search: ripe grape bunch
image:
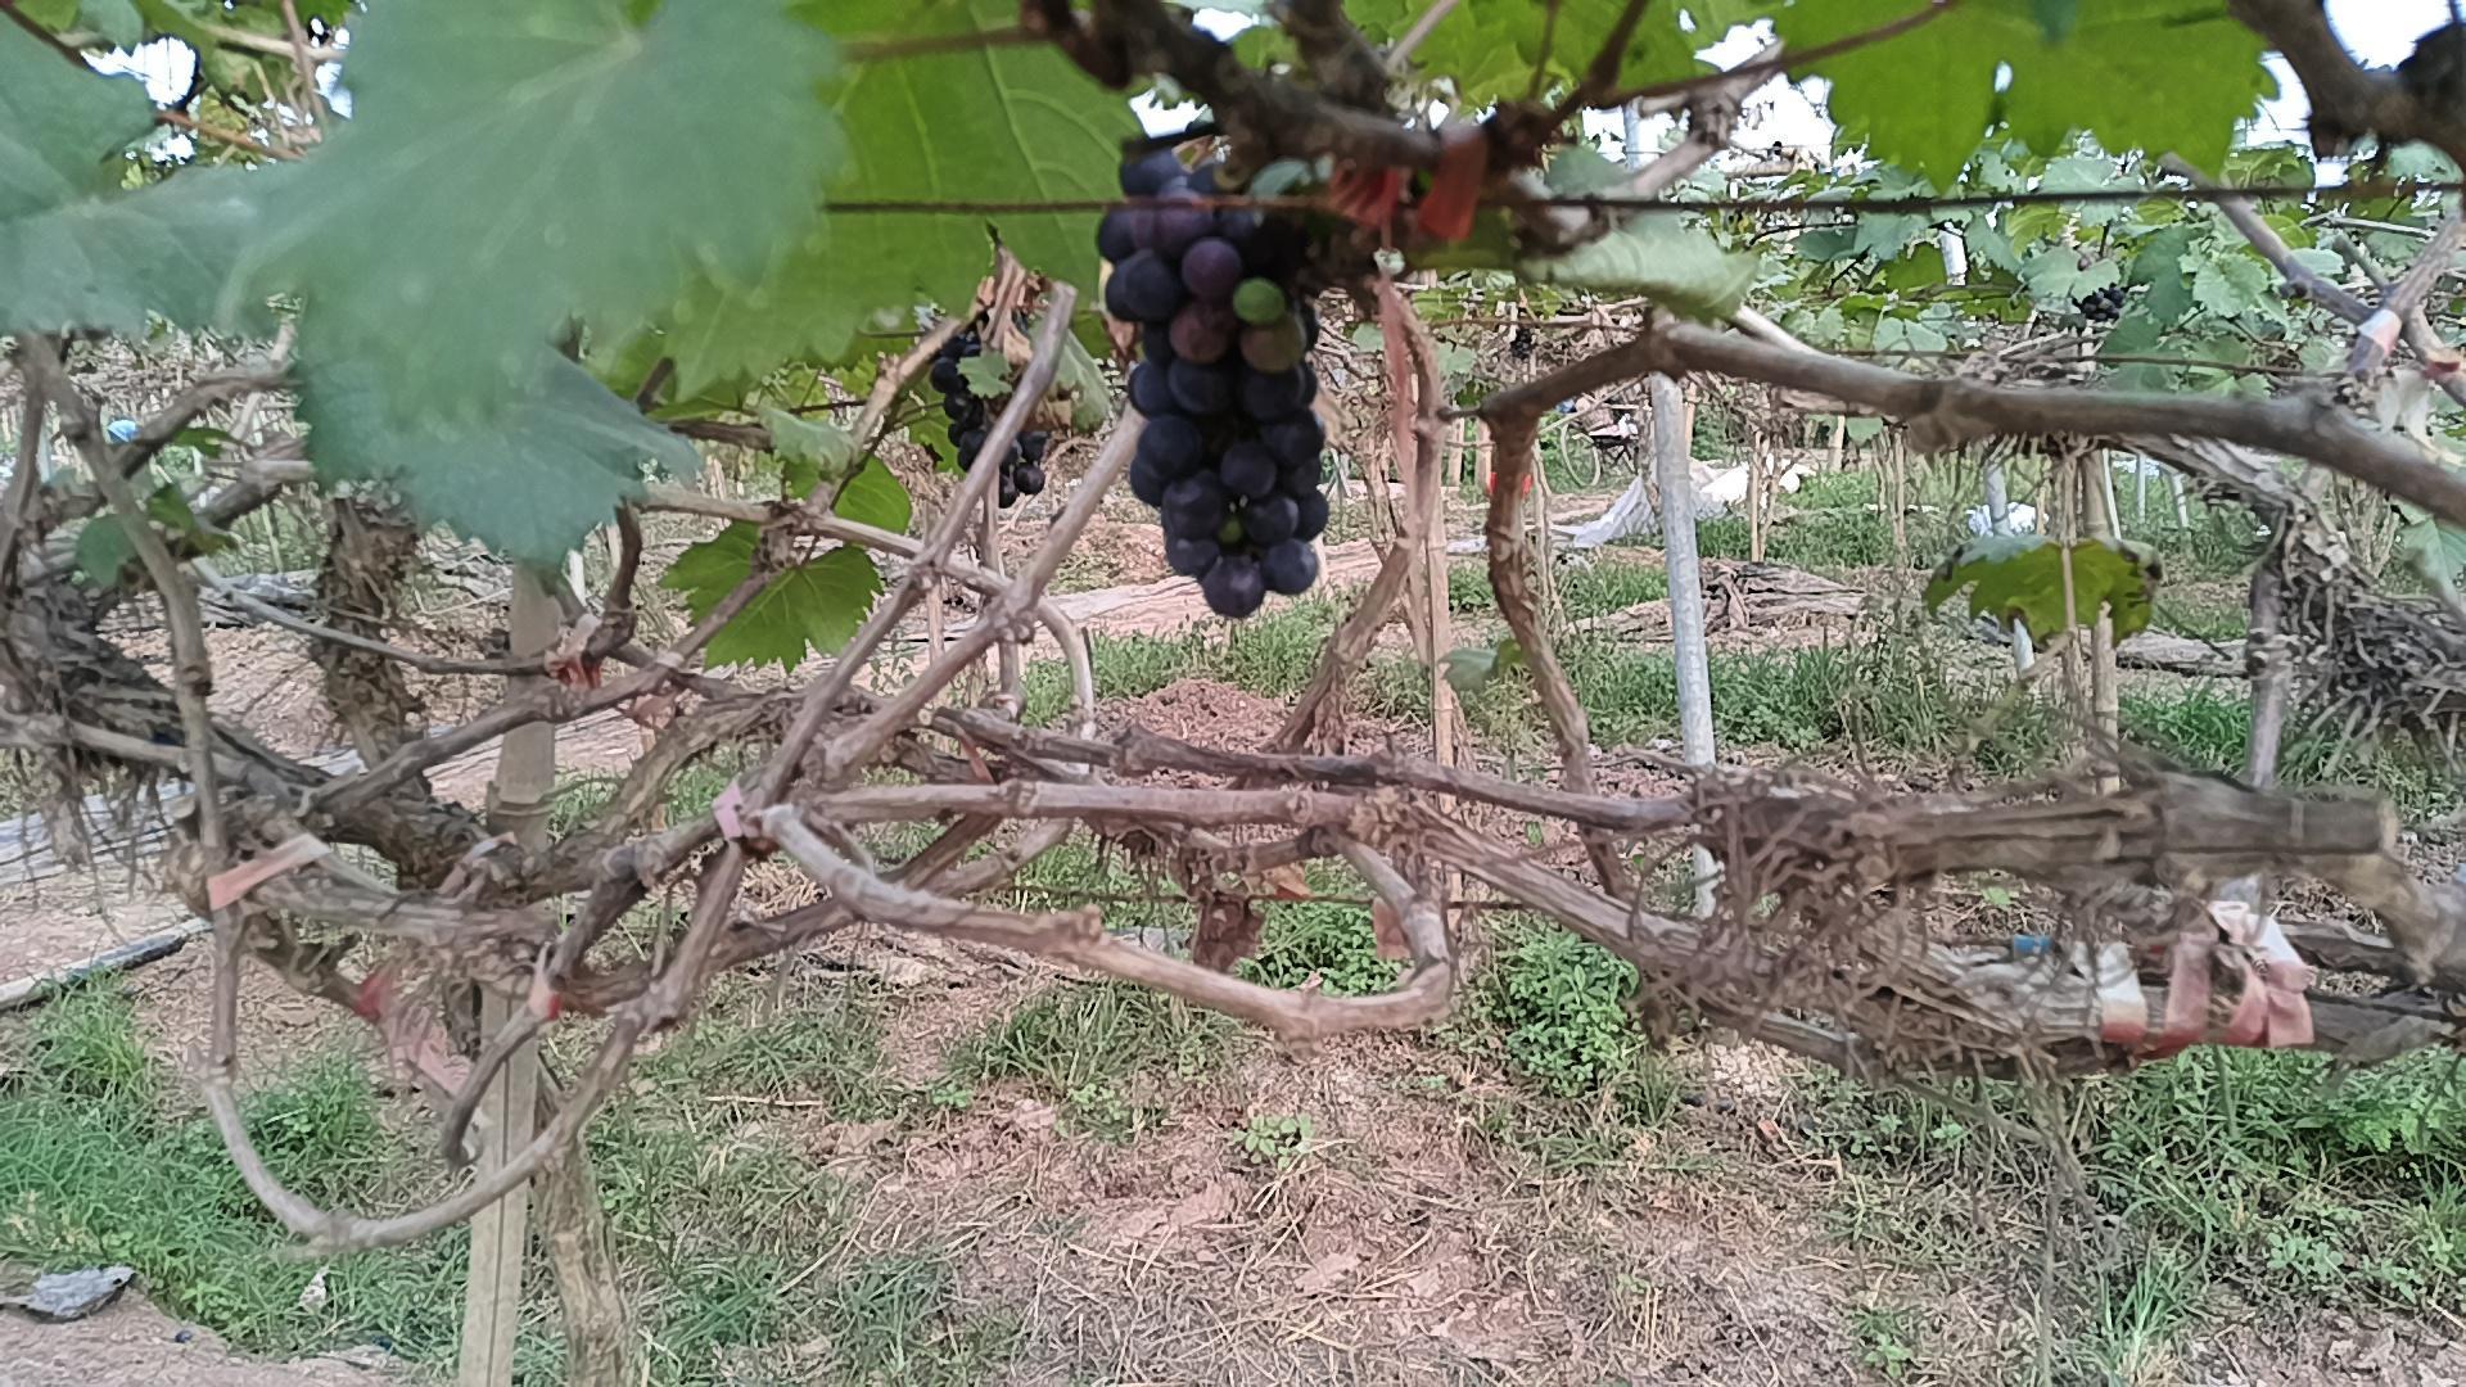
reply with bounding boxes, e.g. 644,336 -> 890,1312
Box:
929,325 -> 1049,509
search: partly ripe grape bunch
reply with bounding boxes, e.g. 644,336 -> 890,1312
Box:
1098,126 -> 1329,618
